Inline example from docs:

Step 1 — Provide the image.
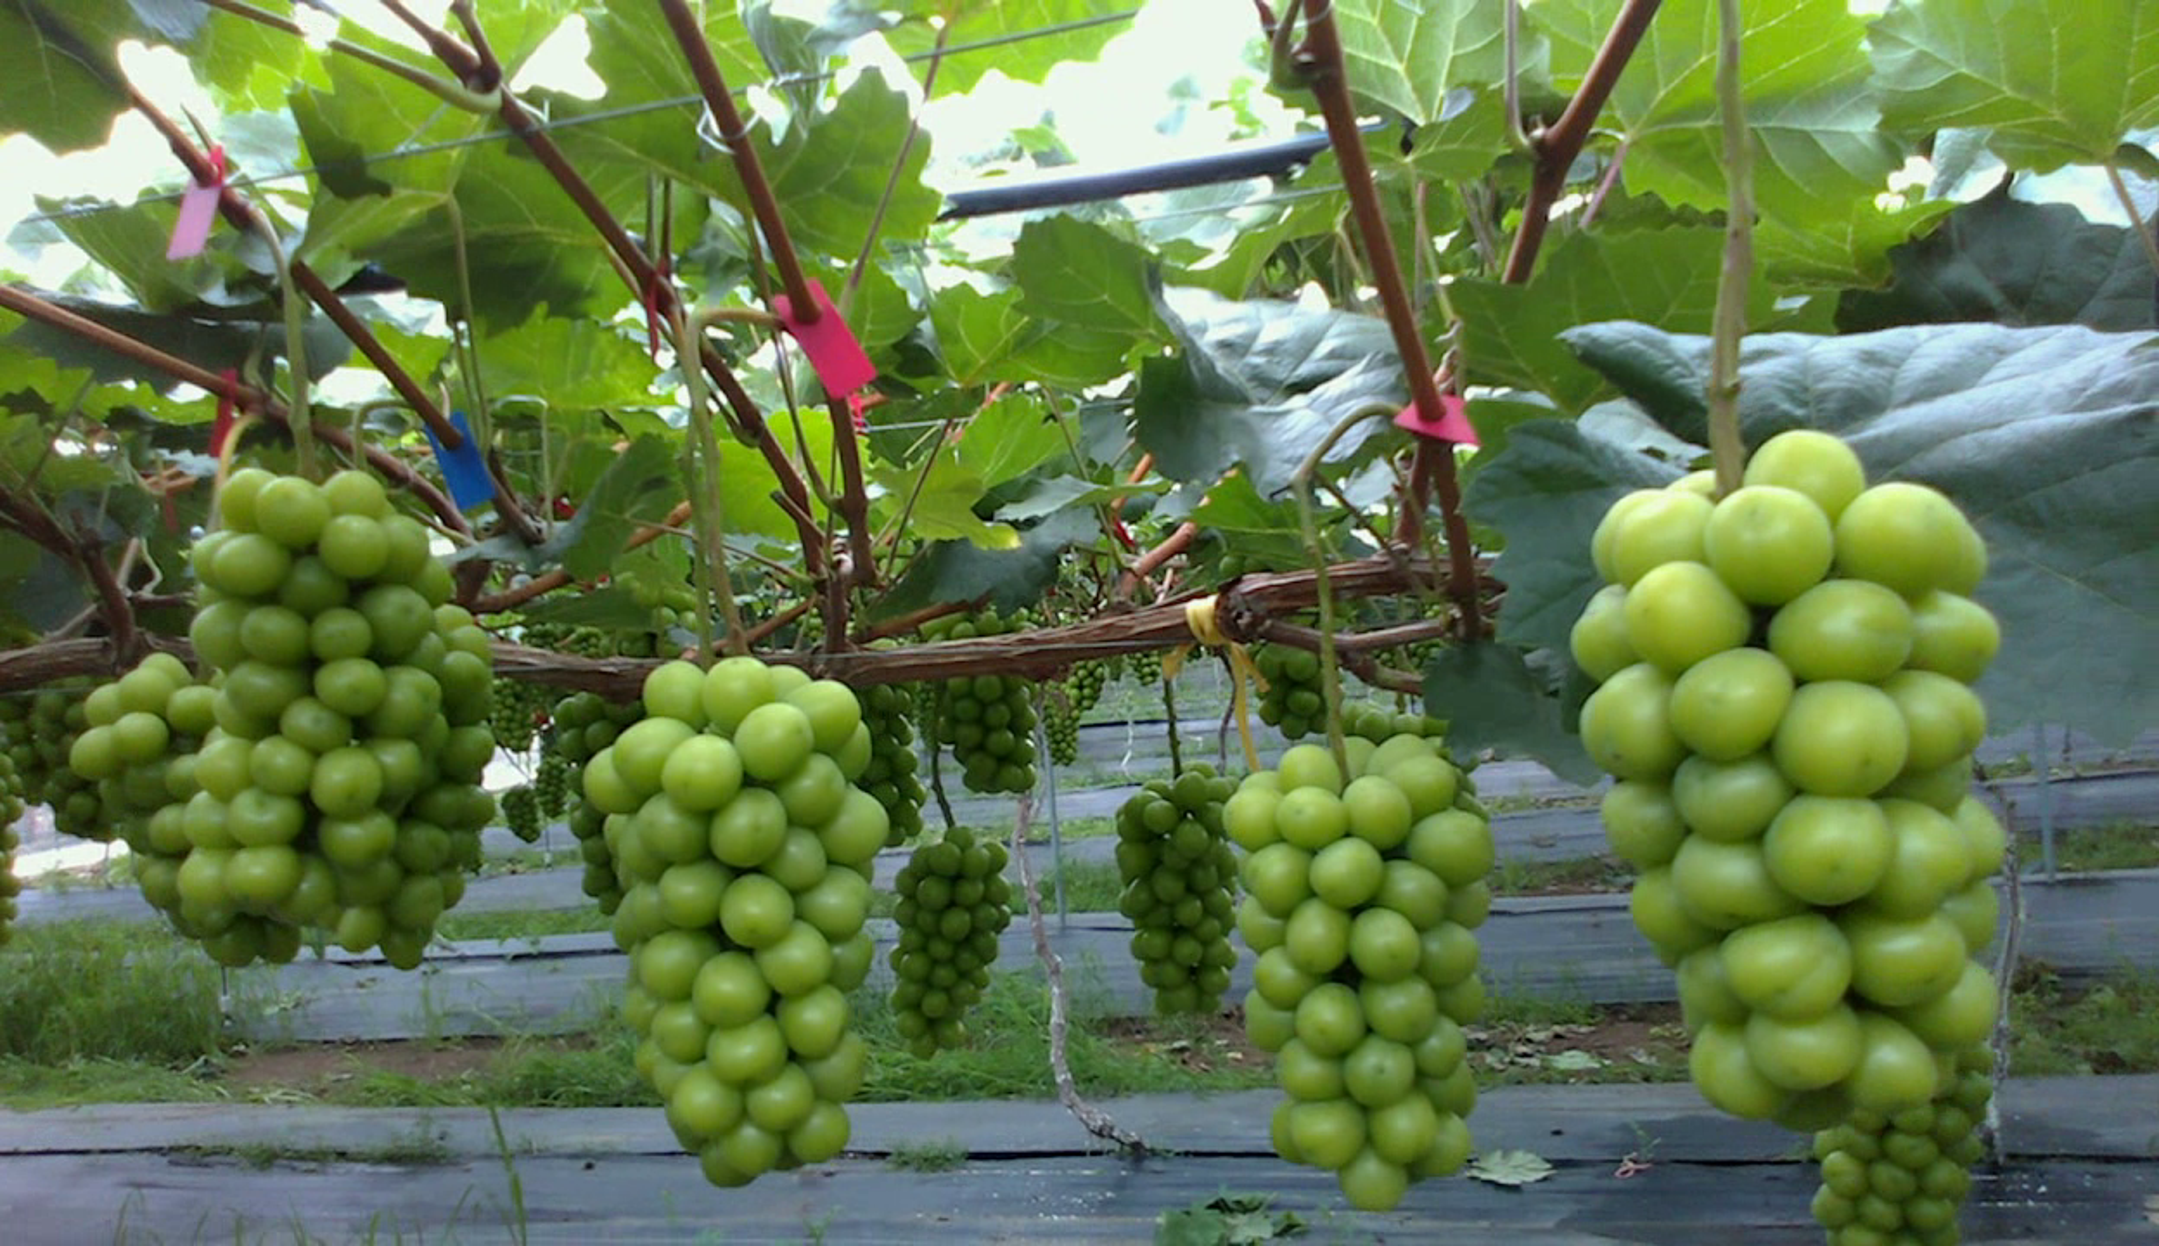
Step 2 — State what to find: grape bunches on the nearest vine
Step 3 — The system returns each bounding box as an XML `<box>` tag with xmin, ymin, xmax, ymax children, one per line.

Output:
<box><xmin>1220</xmin><ymin>732</ymin><xmax>1493</xmax><ymax>1211</ymax></box>
<box><xmin>1571</xmin><ymin>429</ymin><xmax>2005</xmax><ymax>1132</ymax></box>
<box><xmin>581</xmin><ymin>658</ymin><xmax>887</xmax><ymax>1189</ymax></box>
<box><xmin>69</xmin><ymin>656</ymin><xmax>306</xmax><ymax>967</ymax></box>
<box><xmin>176</xmin><ymin>467</ymin><xmax>450</xmax><ymax>928</ymax></box>
<box><xmin>313</xmin><ymin>604</ymin><xmax>497</xmax><ymax>969</ymax></box>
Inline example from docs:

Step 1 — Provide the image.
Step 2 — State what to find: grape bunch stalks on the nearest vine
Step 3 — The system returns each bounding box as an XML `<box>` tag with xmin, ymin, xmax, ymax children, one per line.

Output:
<box><xmin>1707</xmin><ymin>0</ymin><xmax>1759</xmax><ymax>498</ymax></box>
<box><xmin>678</xmin><ymin>306</ymin><xmax>775</xmax><ymax>666</ymax></box>
<box><xmin>1289</xmin><ymin>400</ymin><xmax>1403</xmax><ymax>782</ymax></box>
<box><xmin>259</xmin><ymin>218</ymin><xmax>318</xmax><ymax>478</ymax></box>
